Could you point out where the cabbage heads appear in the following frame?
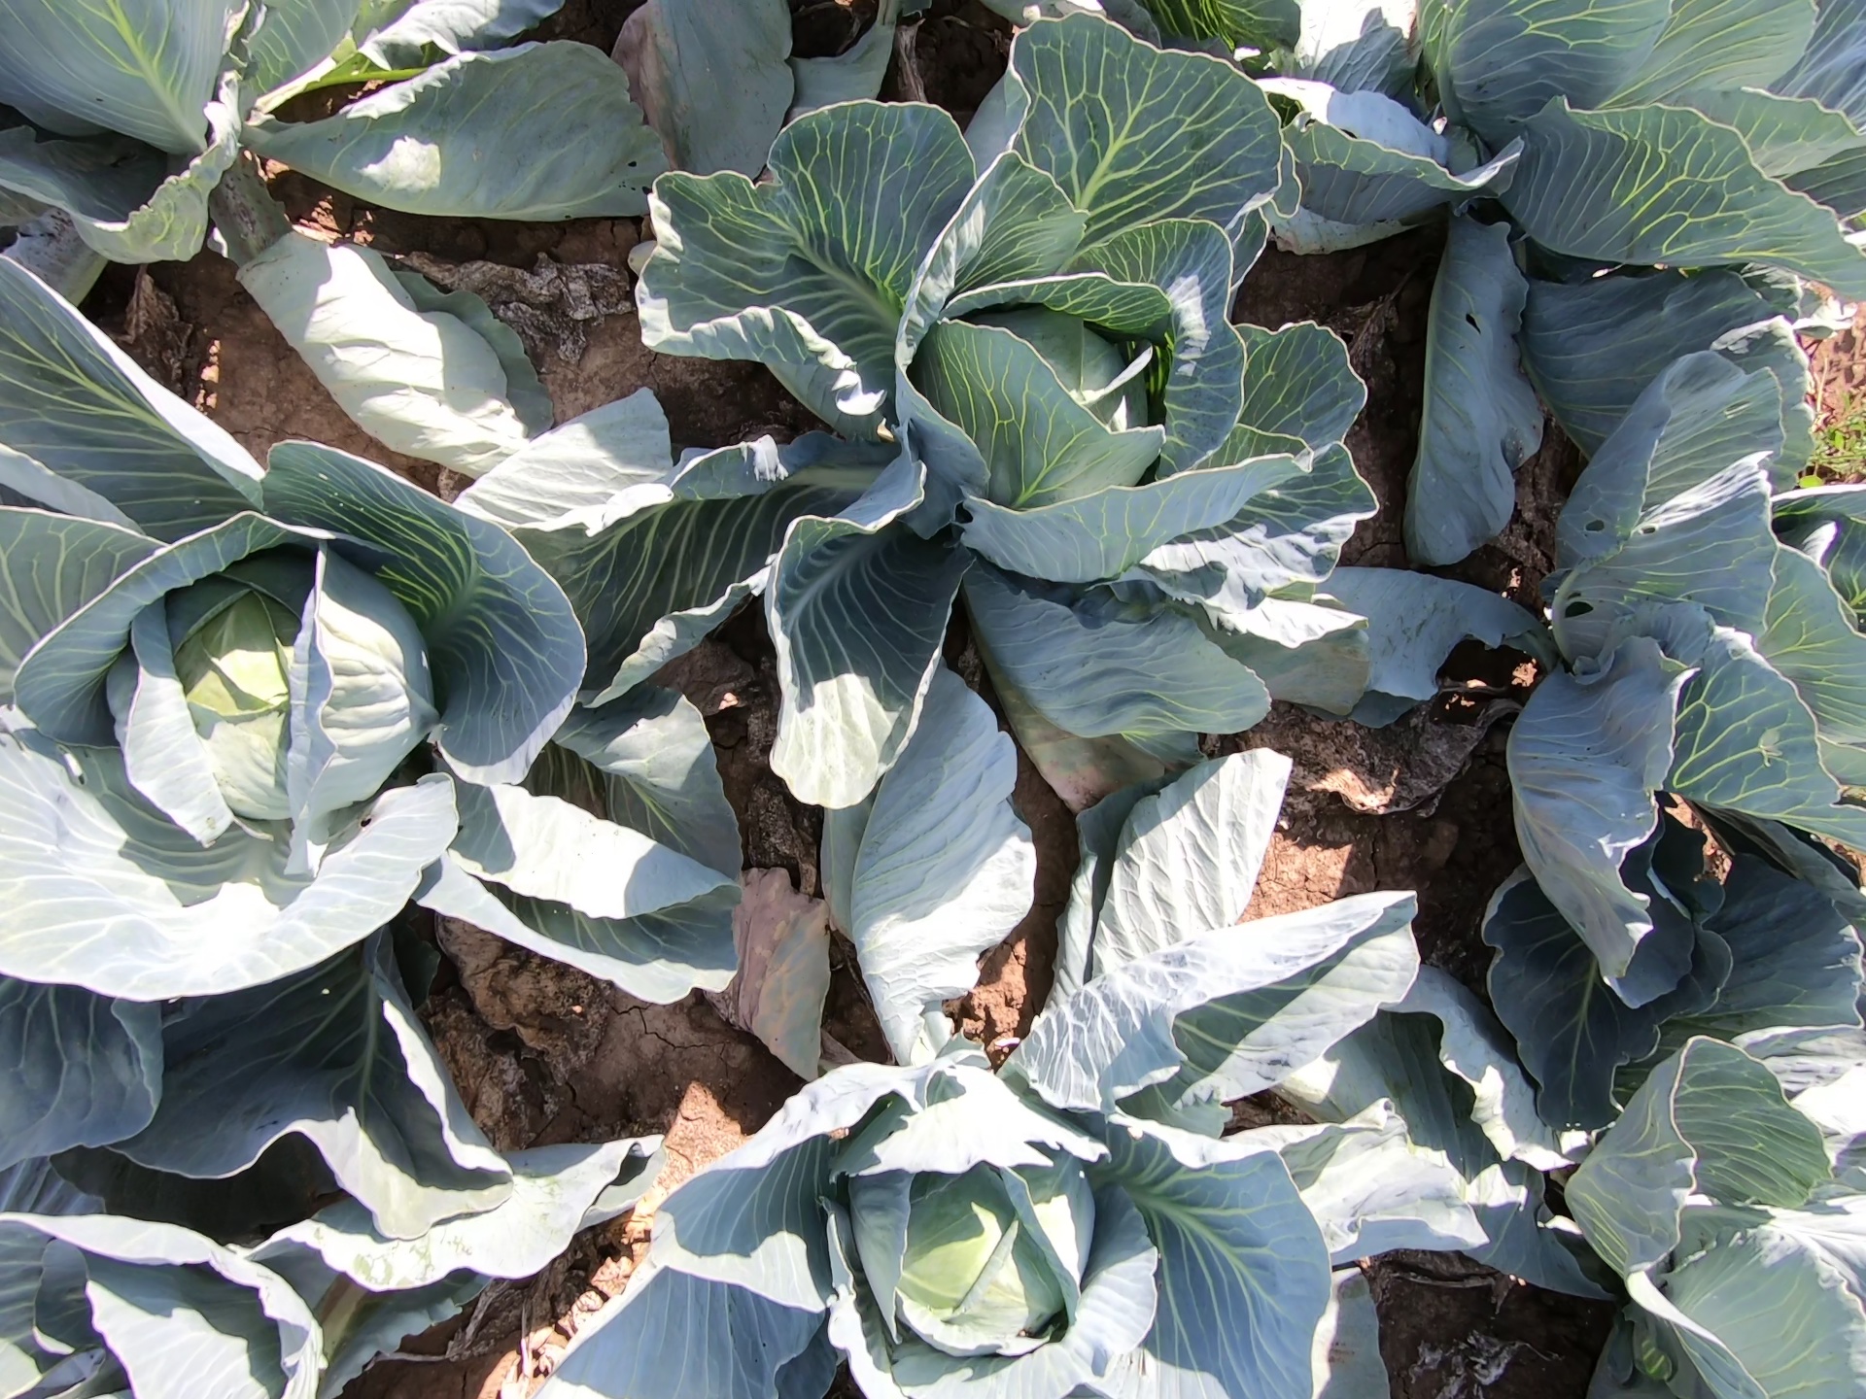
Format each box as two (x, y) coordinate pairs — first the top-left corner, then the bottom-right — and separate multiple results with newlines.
(882, 1123), (1093, 1353)
(953, 305), (1150, 497)
(107, 551), (423, 828)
